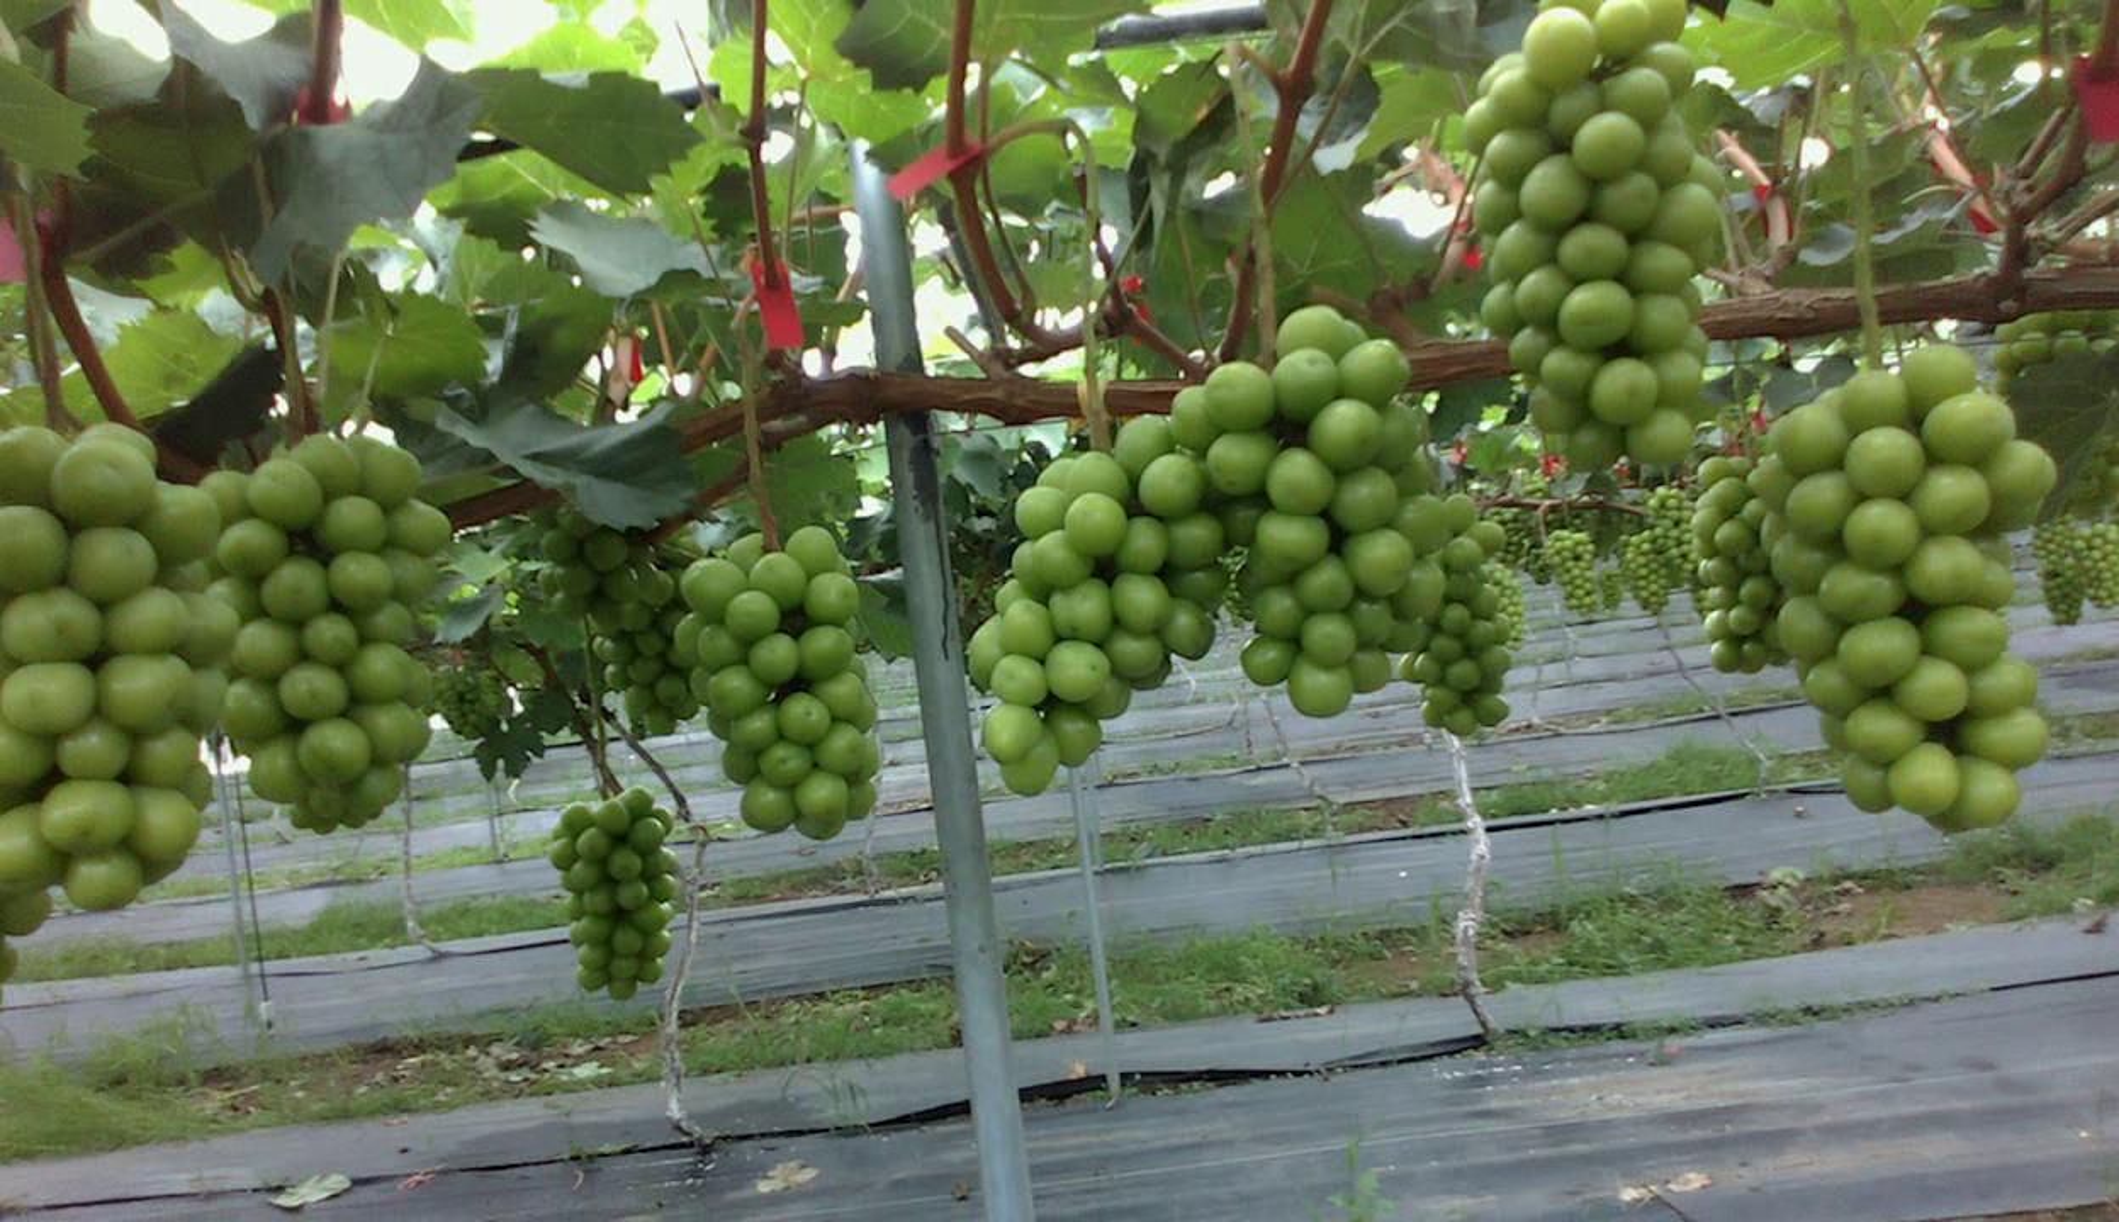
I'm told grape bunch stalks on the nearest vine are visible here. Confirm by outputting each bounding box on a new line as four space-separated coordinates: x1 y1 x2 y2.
1224 41 1282 368
272 294 311 441
728 295 781 552
980 119 1107 450
10 190 66 429
1835 2 1880 368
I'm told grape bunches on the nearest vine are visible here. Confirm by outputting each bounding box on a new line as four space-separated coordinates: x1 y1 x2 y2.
1453 0 1722 475
676 524 876 842
199 433 450 820
1166 305 1450 718
968 412 1231 796
0 421 238 910
1744 345 2058 833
